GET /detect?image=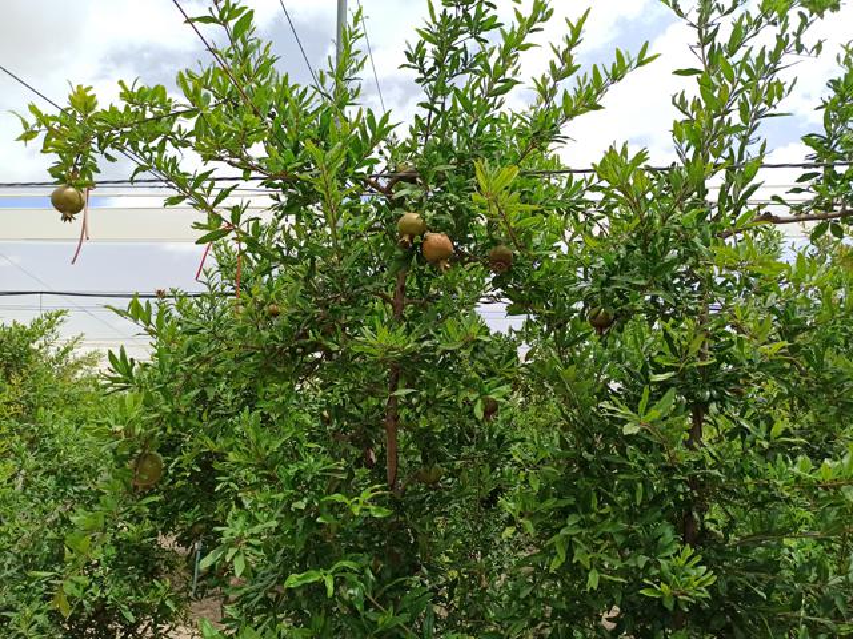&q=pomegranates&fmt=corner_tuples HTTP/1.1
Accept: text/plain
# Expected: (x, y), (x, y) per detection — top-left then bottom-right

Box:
(51, 186), (85, 224)
(423, 465), (442, 491)
(489, 245), (513, 272)
(131, 451), (165, 487)
(589, 310), (613, 335)
(484, 398), (498, 422)
(421, 233), (454, 274)
(397, 212), (428, 248)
